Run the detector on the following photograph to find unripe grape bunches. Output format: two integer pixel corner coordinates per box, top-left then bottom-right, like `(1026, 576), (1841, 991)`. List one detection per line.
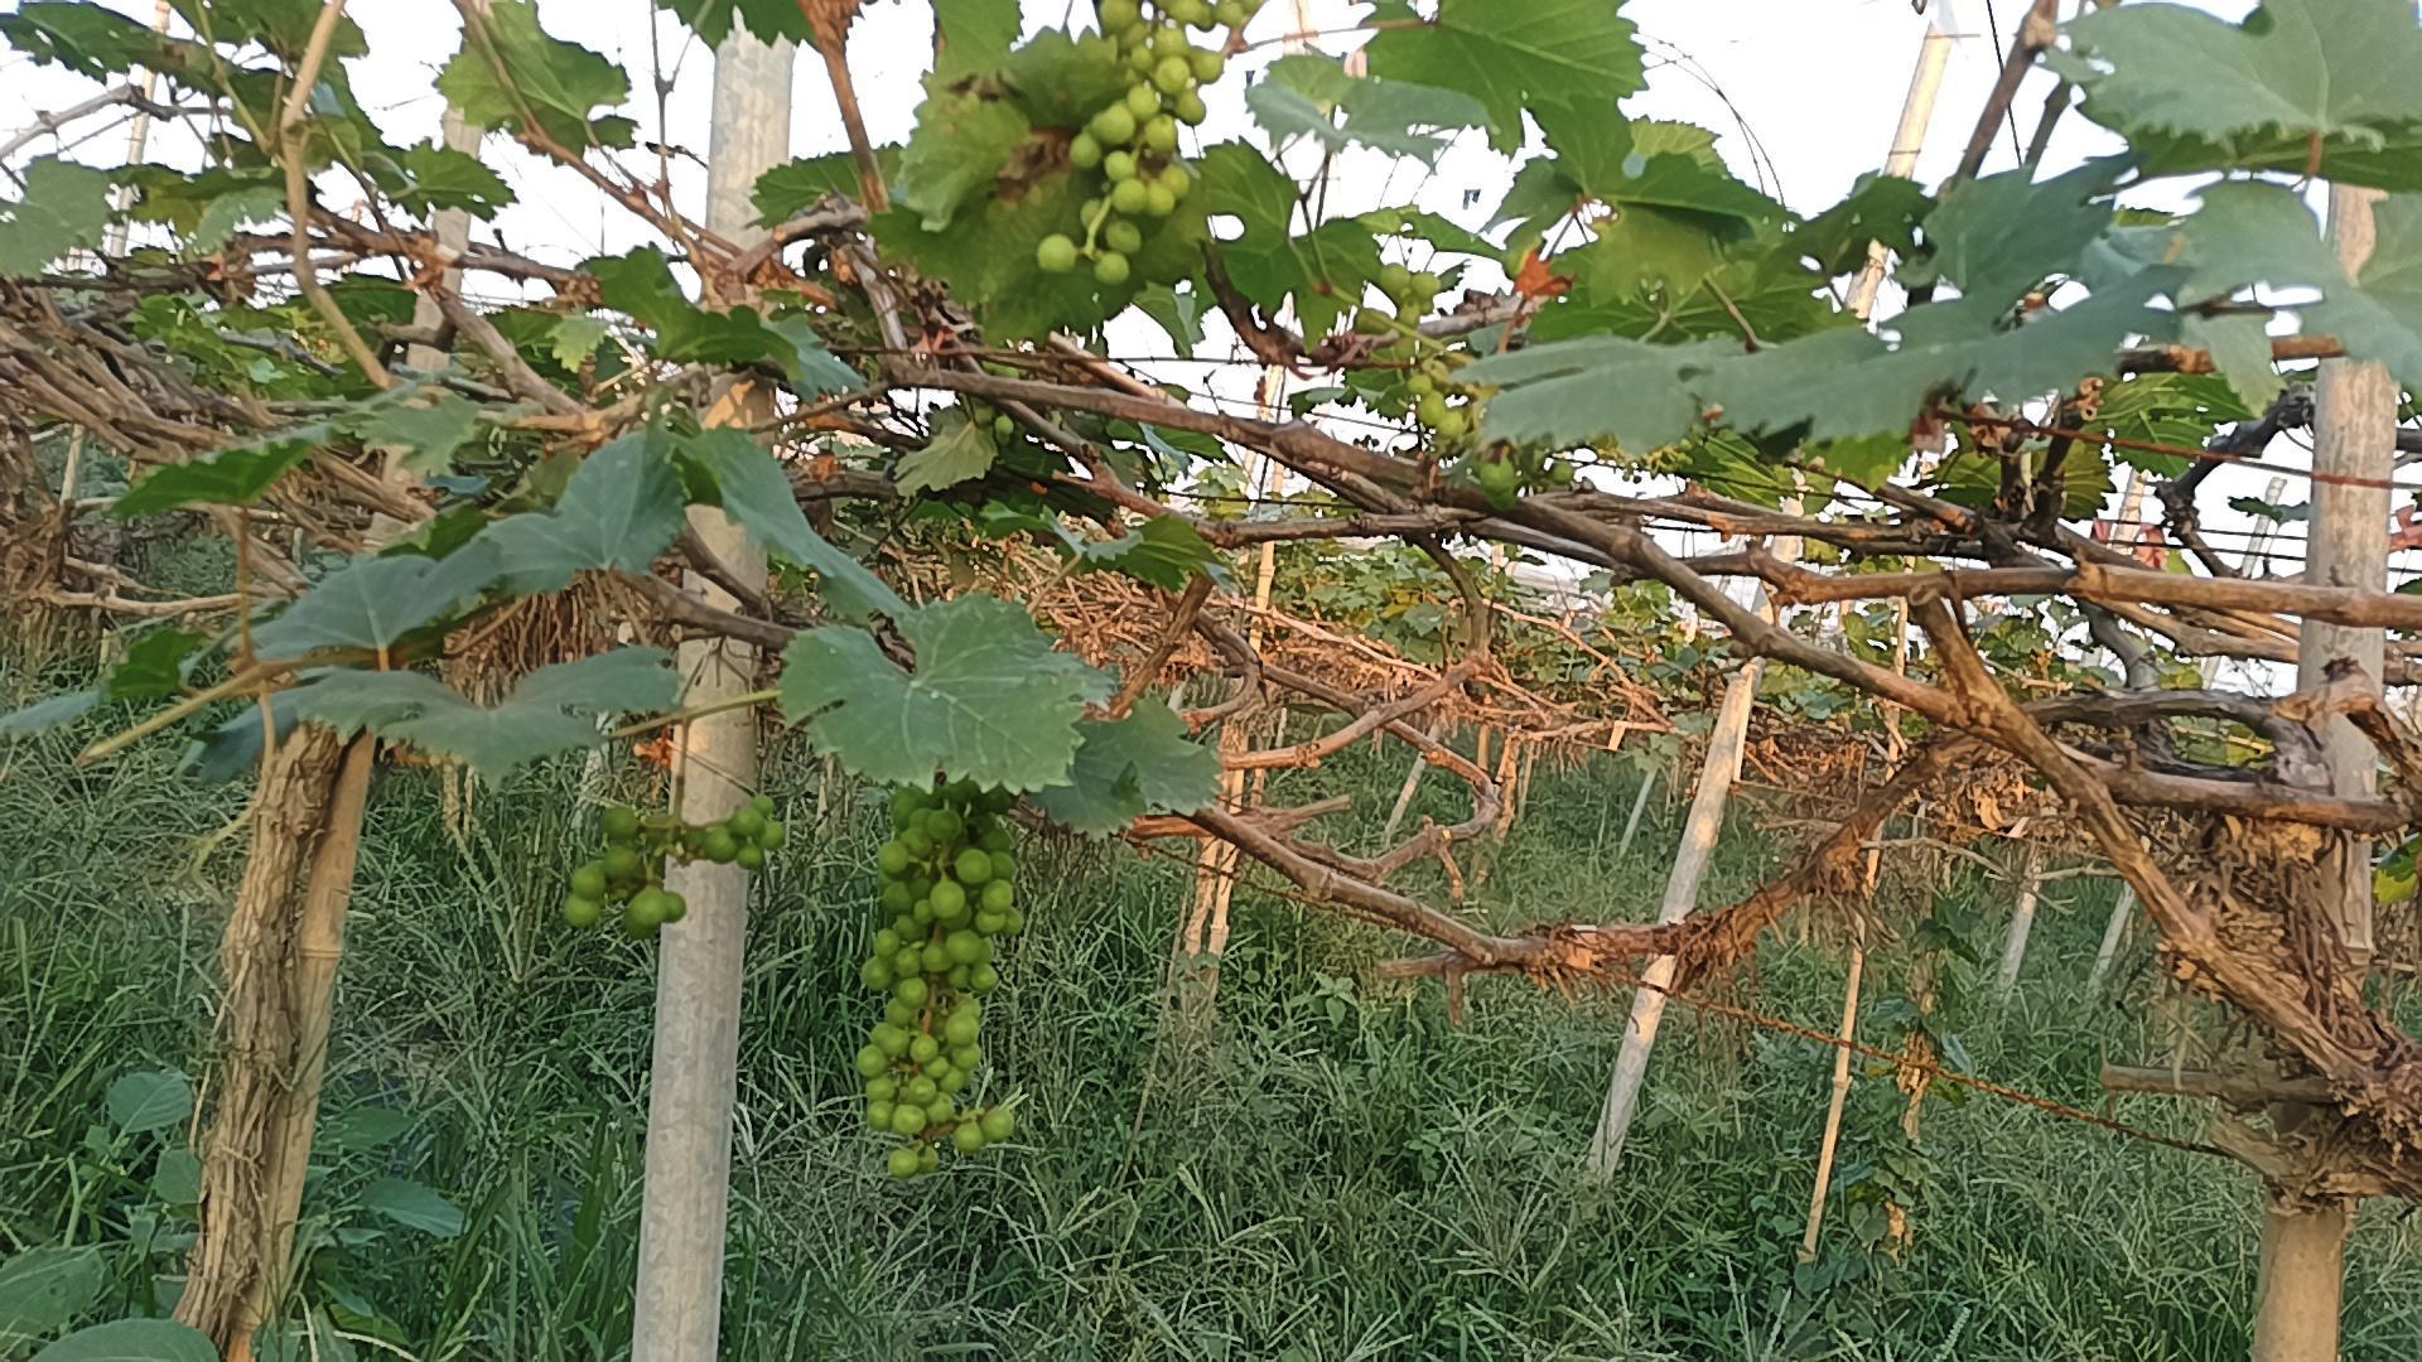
(559, 796), (786, 936)
(1352, 264), (1572, 501)
(854, 782), (1021, 1178)
(968, 406), (1014, 449)
(1036, 0), (1251, 285)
